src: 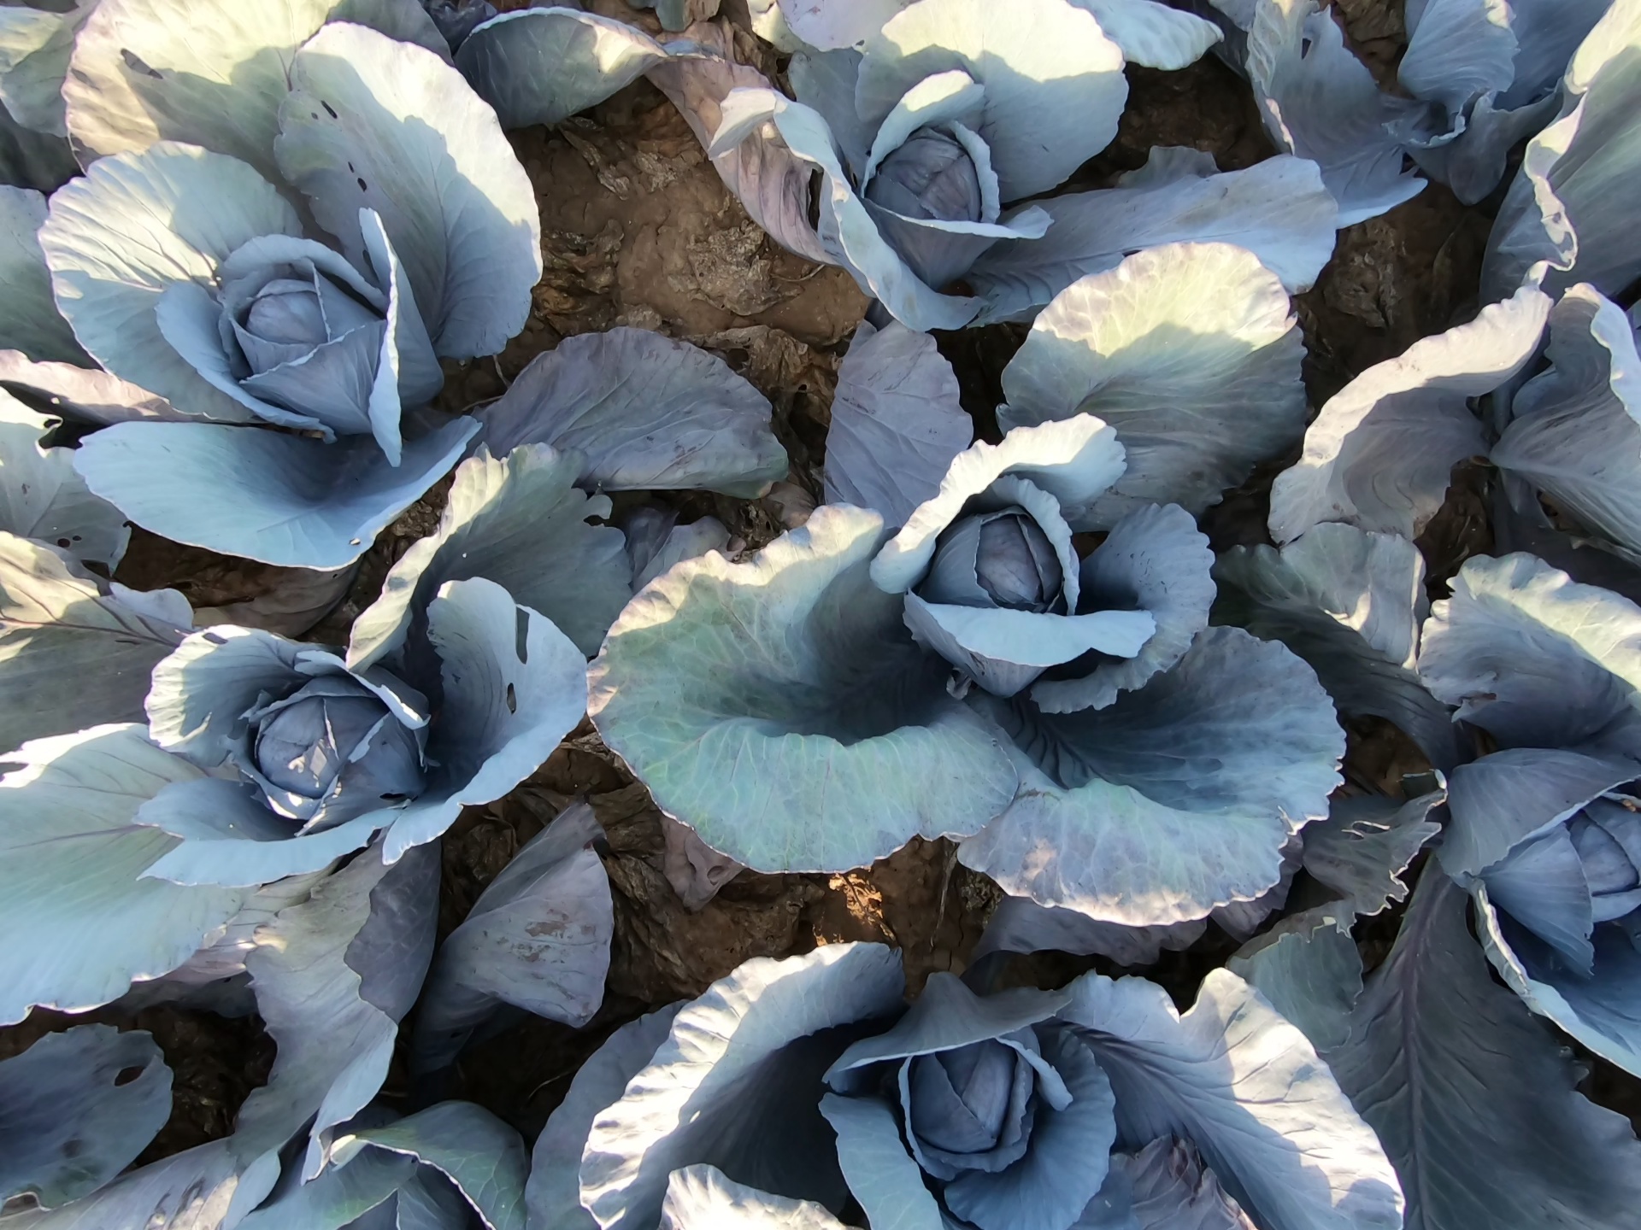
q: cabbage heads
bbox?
[262,688,410,801]
[1485,786,1635,924]
[249,279,364,387]
[305,1136,468,1226]
[939,508,1058,630]
[917,1016,1025,1153]
[873,131,984,254]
